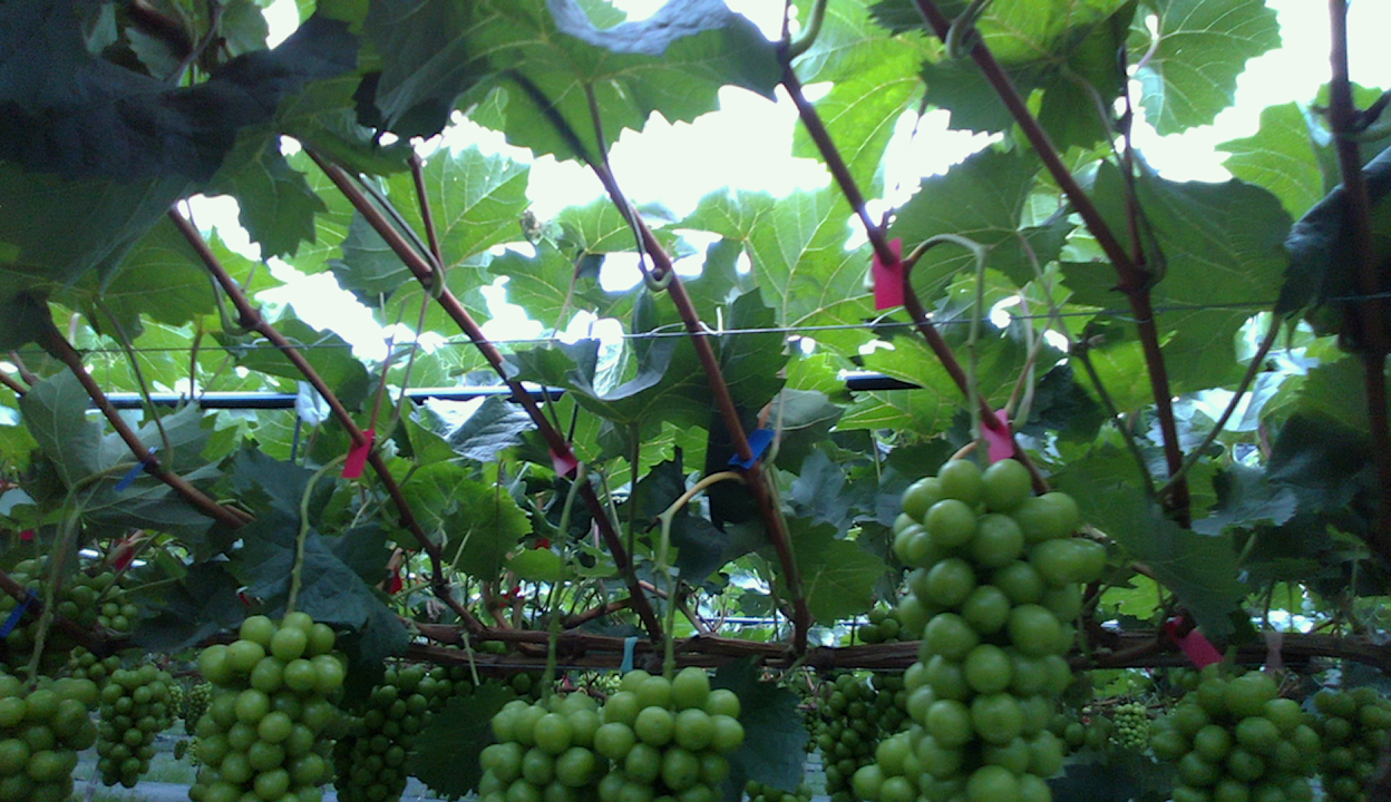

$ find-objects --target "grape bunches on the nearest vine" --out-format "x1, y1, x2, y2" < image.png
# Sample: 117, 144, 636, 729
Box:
0, 672, 97, 801
476, 691, 610, 801
187, 612, 350, 801
593, 666, 743, 801
1148, 662, 1321, 801
853, 459, 1107, 801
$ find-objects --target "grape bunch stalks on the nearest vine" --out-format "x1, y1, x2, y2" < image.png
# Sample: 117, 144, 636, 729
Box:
904, 232, 990, 470
26, 461, 136, 691
284, 453, 346, 614
539, 460, 585, 713
655, 470, 746, 682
